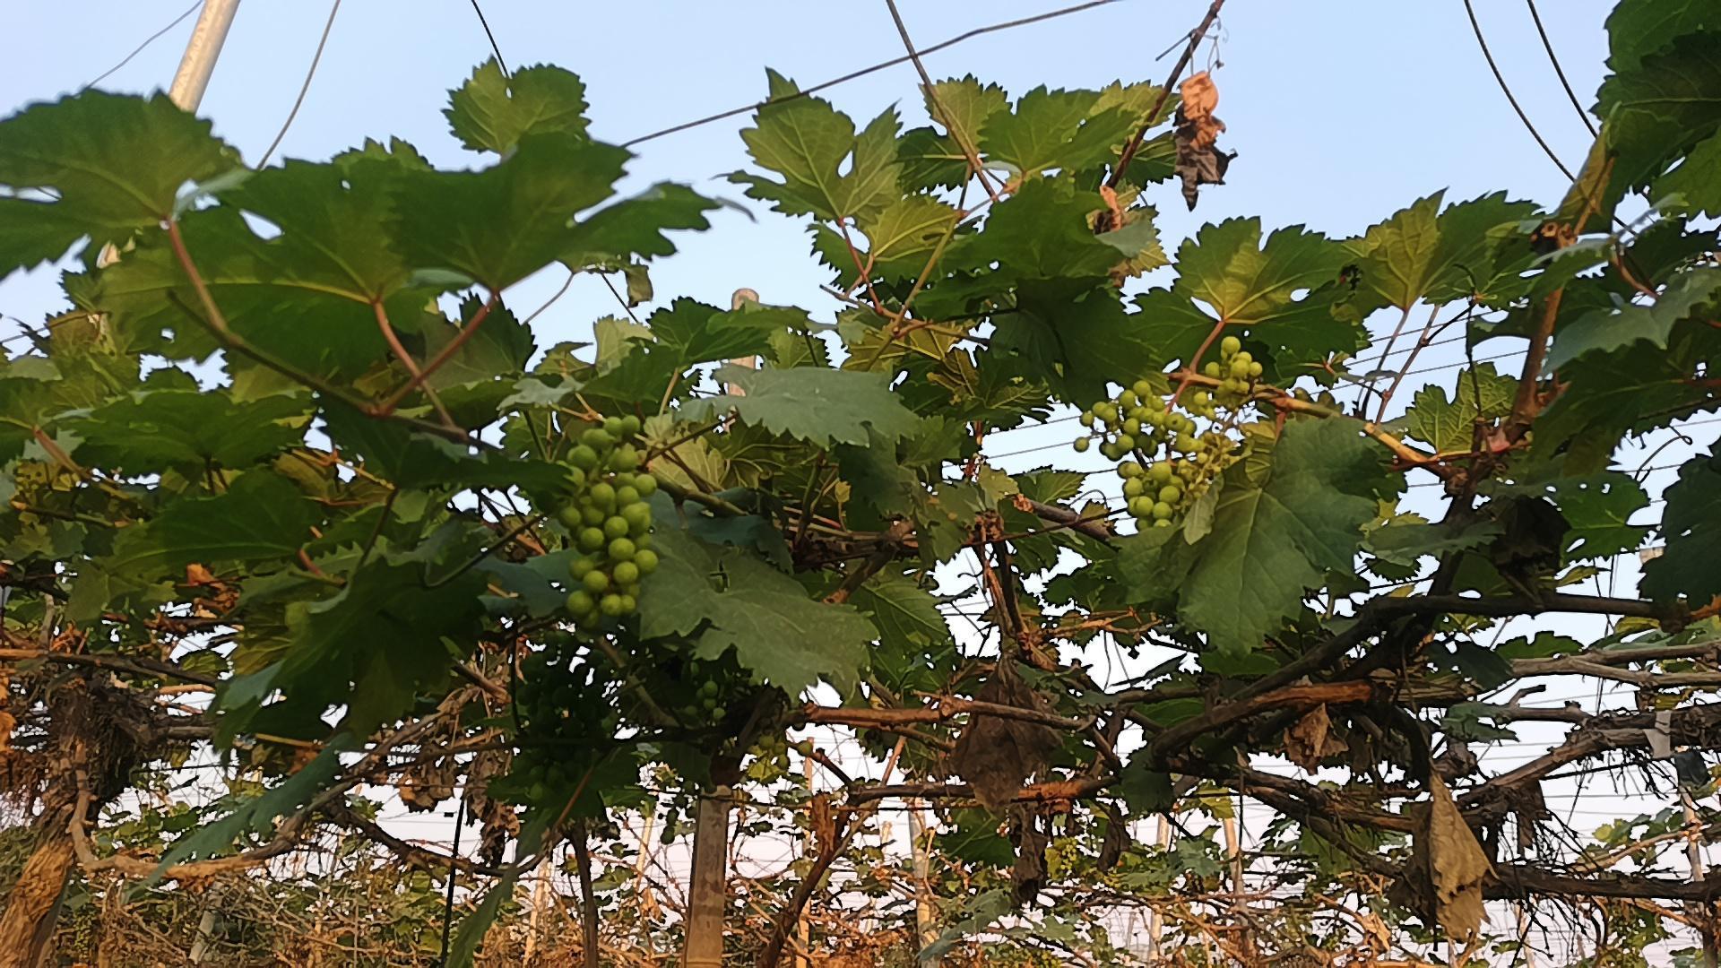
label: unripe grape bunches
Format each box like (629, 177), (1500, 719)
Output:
(757, 734), (813, 774)
(555, 417), (656, 625)
(675, 658), (735, 724)
(659, 781), (716, 844)
(488, 633), (632, 815)
(1074, 337), (1261, 526)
